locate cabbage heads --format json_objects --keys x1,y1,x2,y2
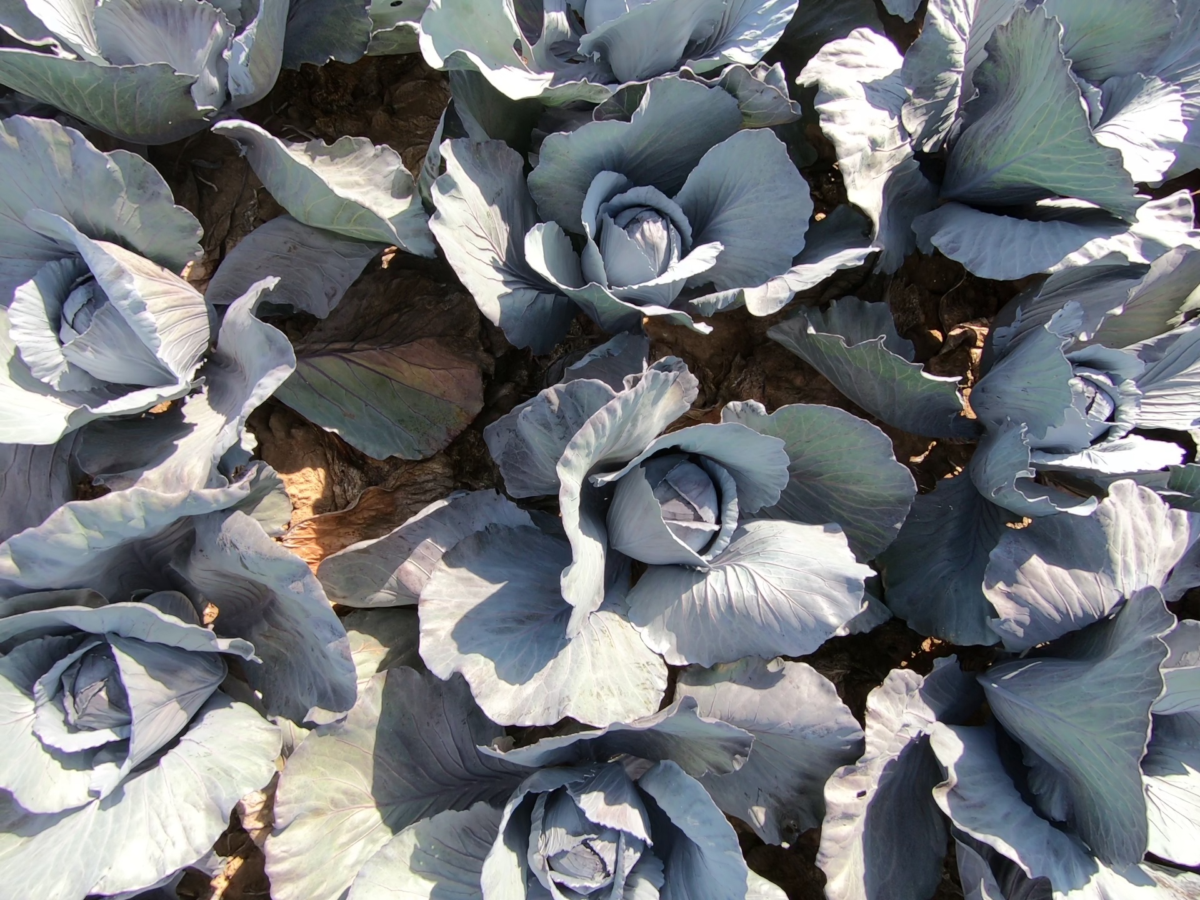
[
  {"x1": 610, "y1": 456, "x2": 715, "y2": 562},
  {"x1": 539, "y1": 778, "x2": 648, "y2": 891},
  {"x1": 584, "y1": 0, "x2": 691, "y2": 62},
  {"x1": 607, "y1": 207, "x2": 676, "y2": 285},
  {"x1": 71, "y1": 632, "x2": 184, "y2": 730},
  {"x1": 1026, "y1": 366, "x2": 1117, "y2": 445},
  {"x1": 56, "y1": 273, "x2": 181, "y2": 377}
]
